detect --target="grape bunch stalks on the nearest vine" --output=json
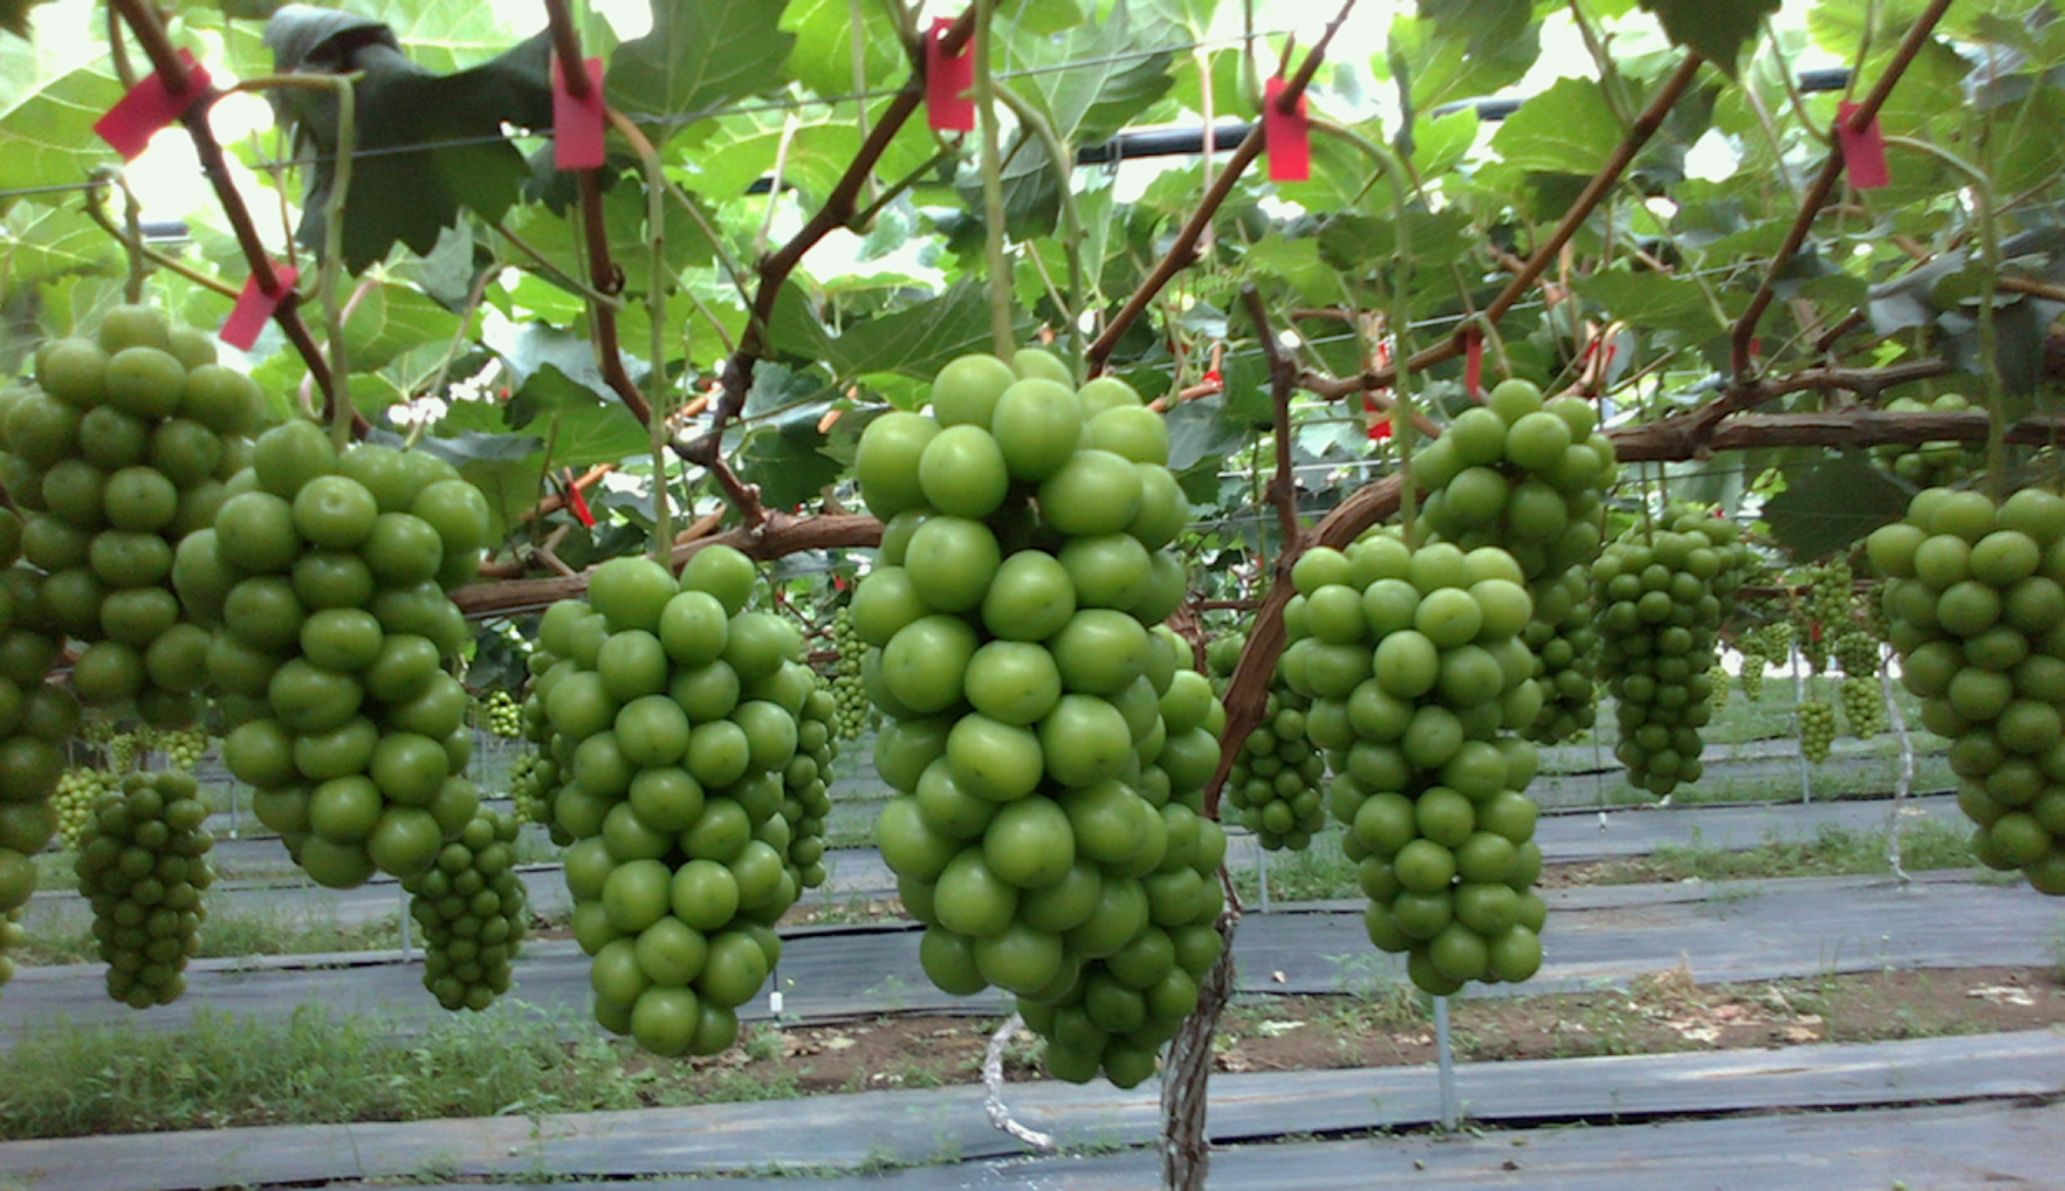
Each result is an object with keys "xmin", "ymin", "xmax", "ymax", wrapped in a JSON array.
[
  {"xmin": 1302, "ymin": 116, "xmax": 1418, "ymax": 554},
  {"xmin": 602, "ymin": 99, "xmax": 673, "ymax": 577},
  {"xmin": 1880, "ymin": 134, "xmax": 2004, "ymax": 506},
  {"xmin": 971, "ymin": 0, "xmax": 1016, "ymax": 361},
  {"xmin": 1449, "ymin": 311, "xmax": 1511, "ymax": 382},
  {"xmin": 81, "ymin": 169, "xmax": 247, "ymax": 304},
  {"xmin": 991, "ymin": 78, "xmax": 1087, "ymax": 382},
  {"xmin": 195, "ymin": 73, "xmax": 354, "ymax": 453}
]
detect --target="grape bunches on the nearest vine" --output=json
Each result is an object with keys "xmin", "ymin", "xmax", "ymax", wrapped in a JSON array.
[
  {"xmin": 849, "ymin": 349, "xmax": 1190, "ymax": 1002},
  {"xmin": 1282, "ymin": 536, "xmax": 1545, "ymax": 994},
  {"xmin": 1866, "ymin": 488, "xmax": 2063, "ymax": 898},
  {"xmin": 1415, "ymin": 377, "xmax": 1620, "ymax": 622},
  {"xmin": 2, "ymin": 304, "xmax": 256, "ymax": 733},
  {"xmin": 1018, "ymin": 635, "xmax": 1226, "ymax": 1088},
  {"xmin": 536, "ymin": 543, "xmax": 807, "ymax": 1057},
  {"xmin": 167, "ymin": 417, "xmax": 488, "ymax": 890}
]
